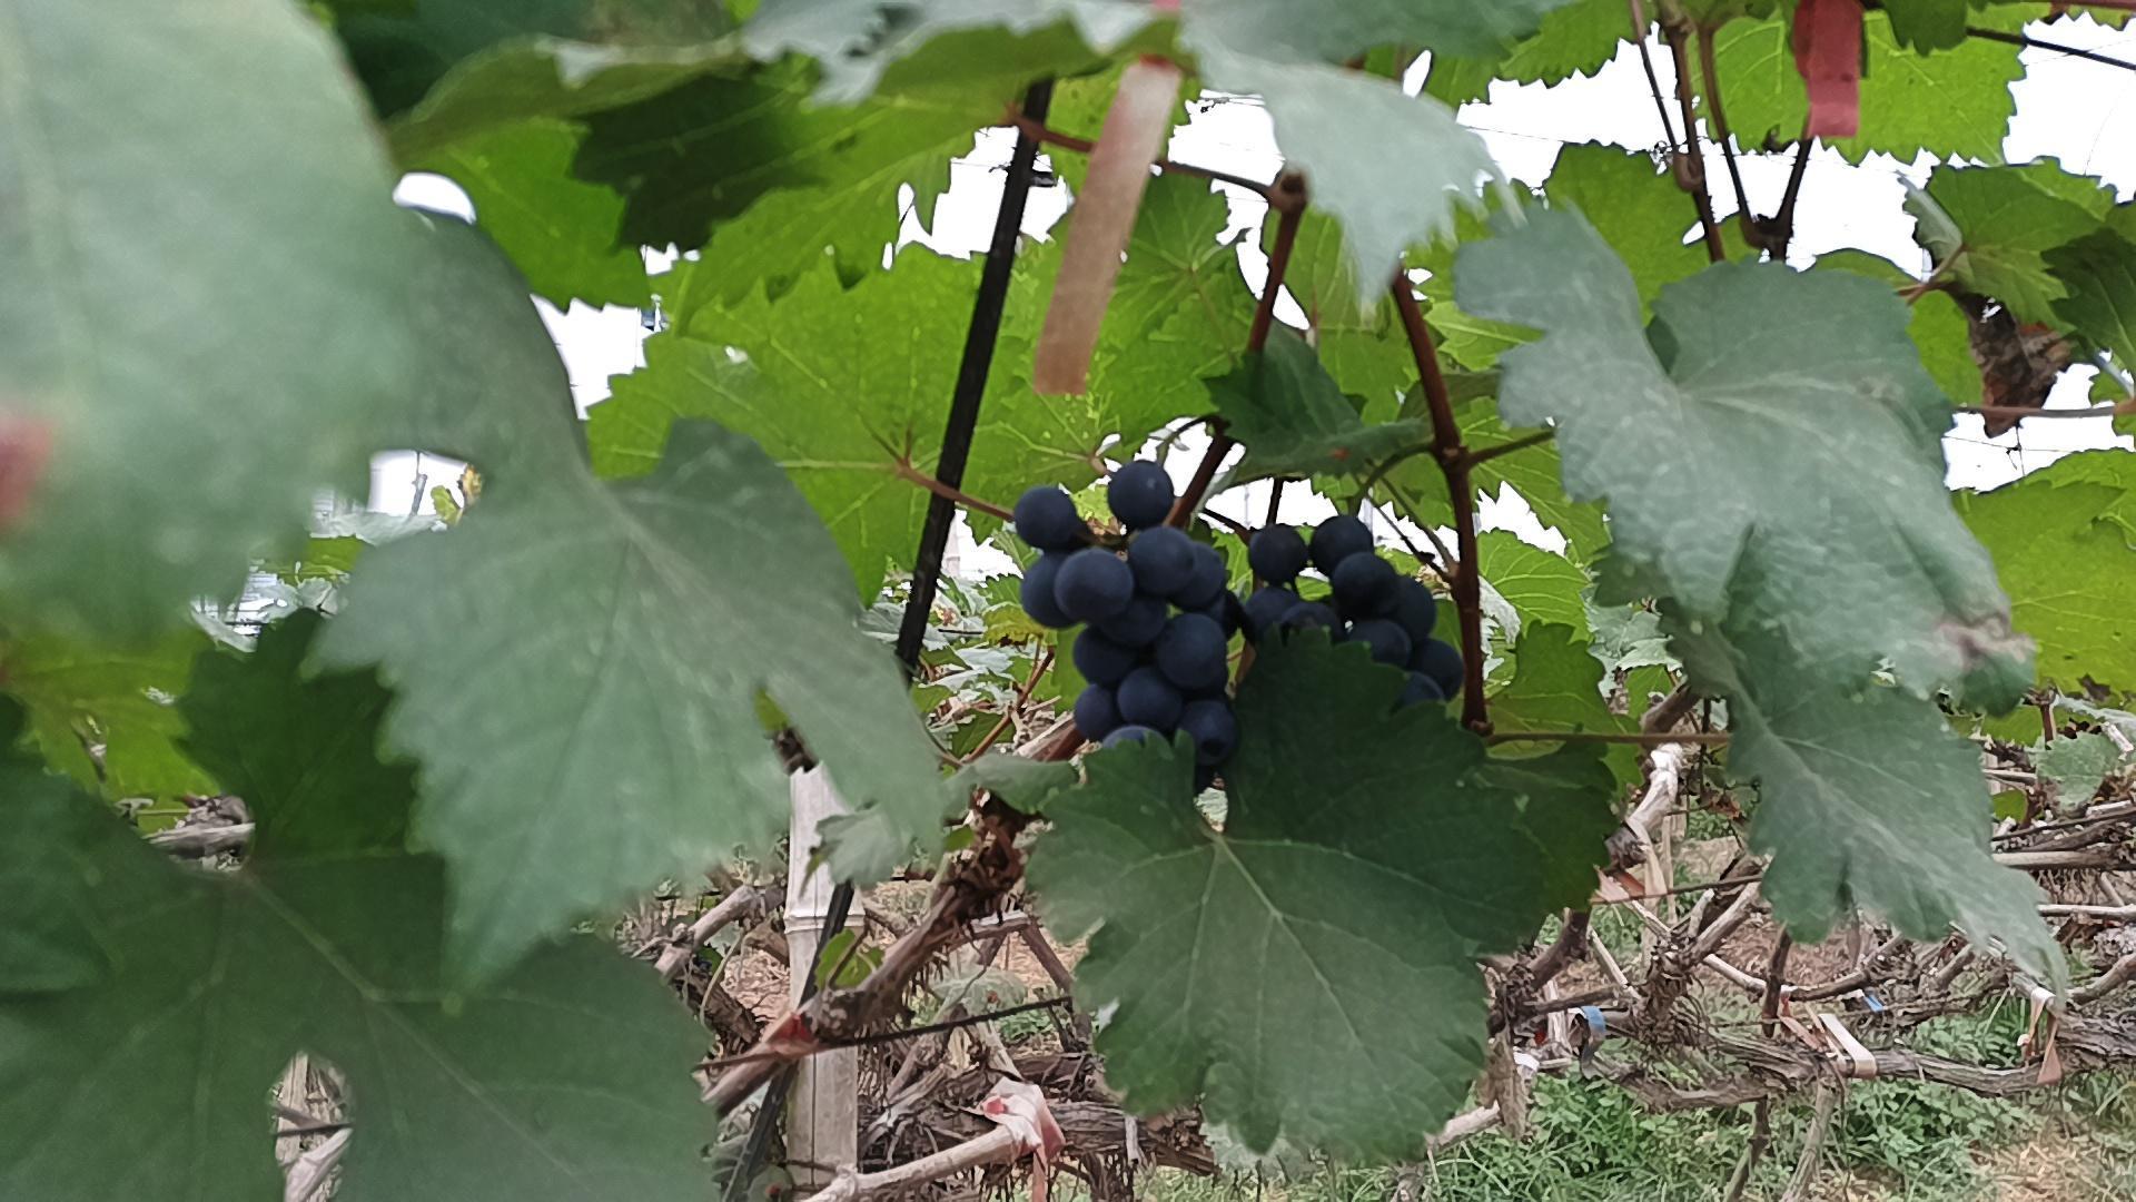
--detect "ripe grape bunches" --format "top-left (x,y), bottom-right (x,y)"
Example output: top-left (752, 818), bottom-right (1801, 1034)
top-left (1244, 514), bottom-right (1462, 703)
top-left (1015, 460), bottom-right (1238, 791)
